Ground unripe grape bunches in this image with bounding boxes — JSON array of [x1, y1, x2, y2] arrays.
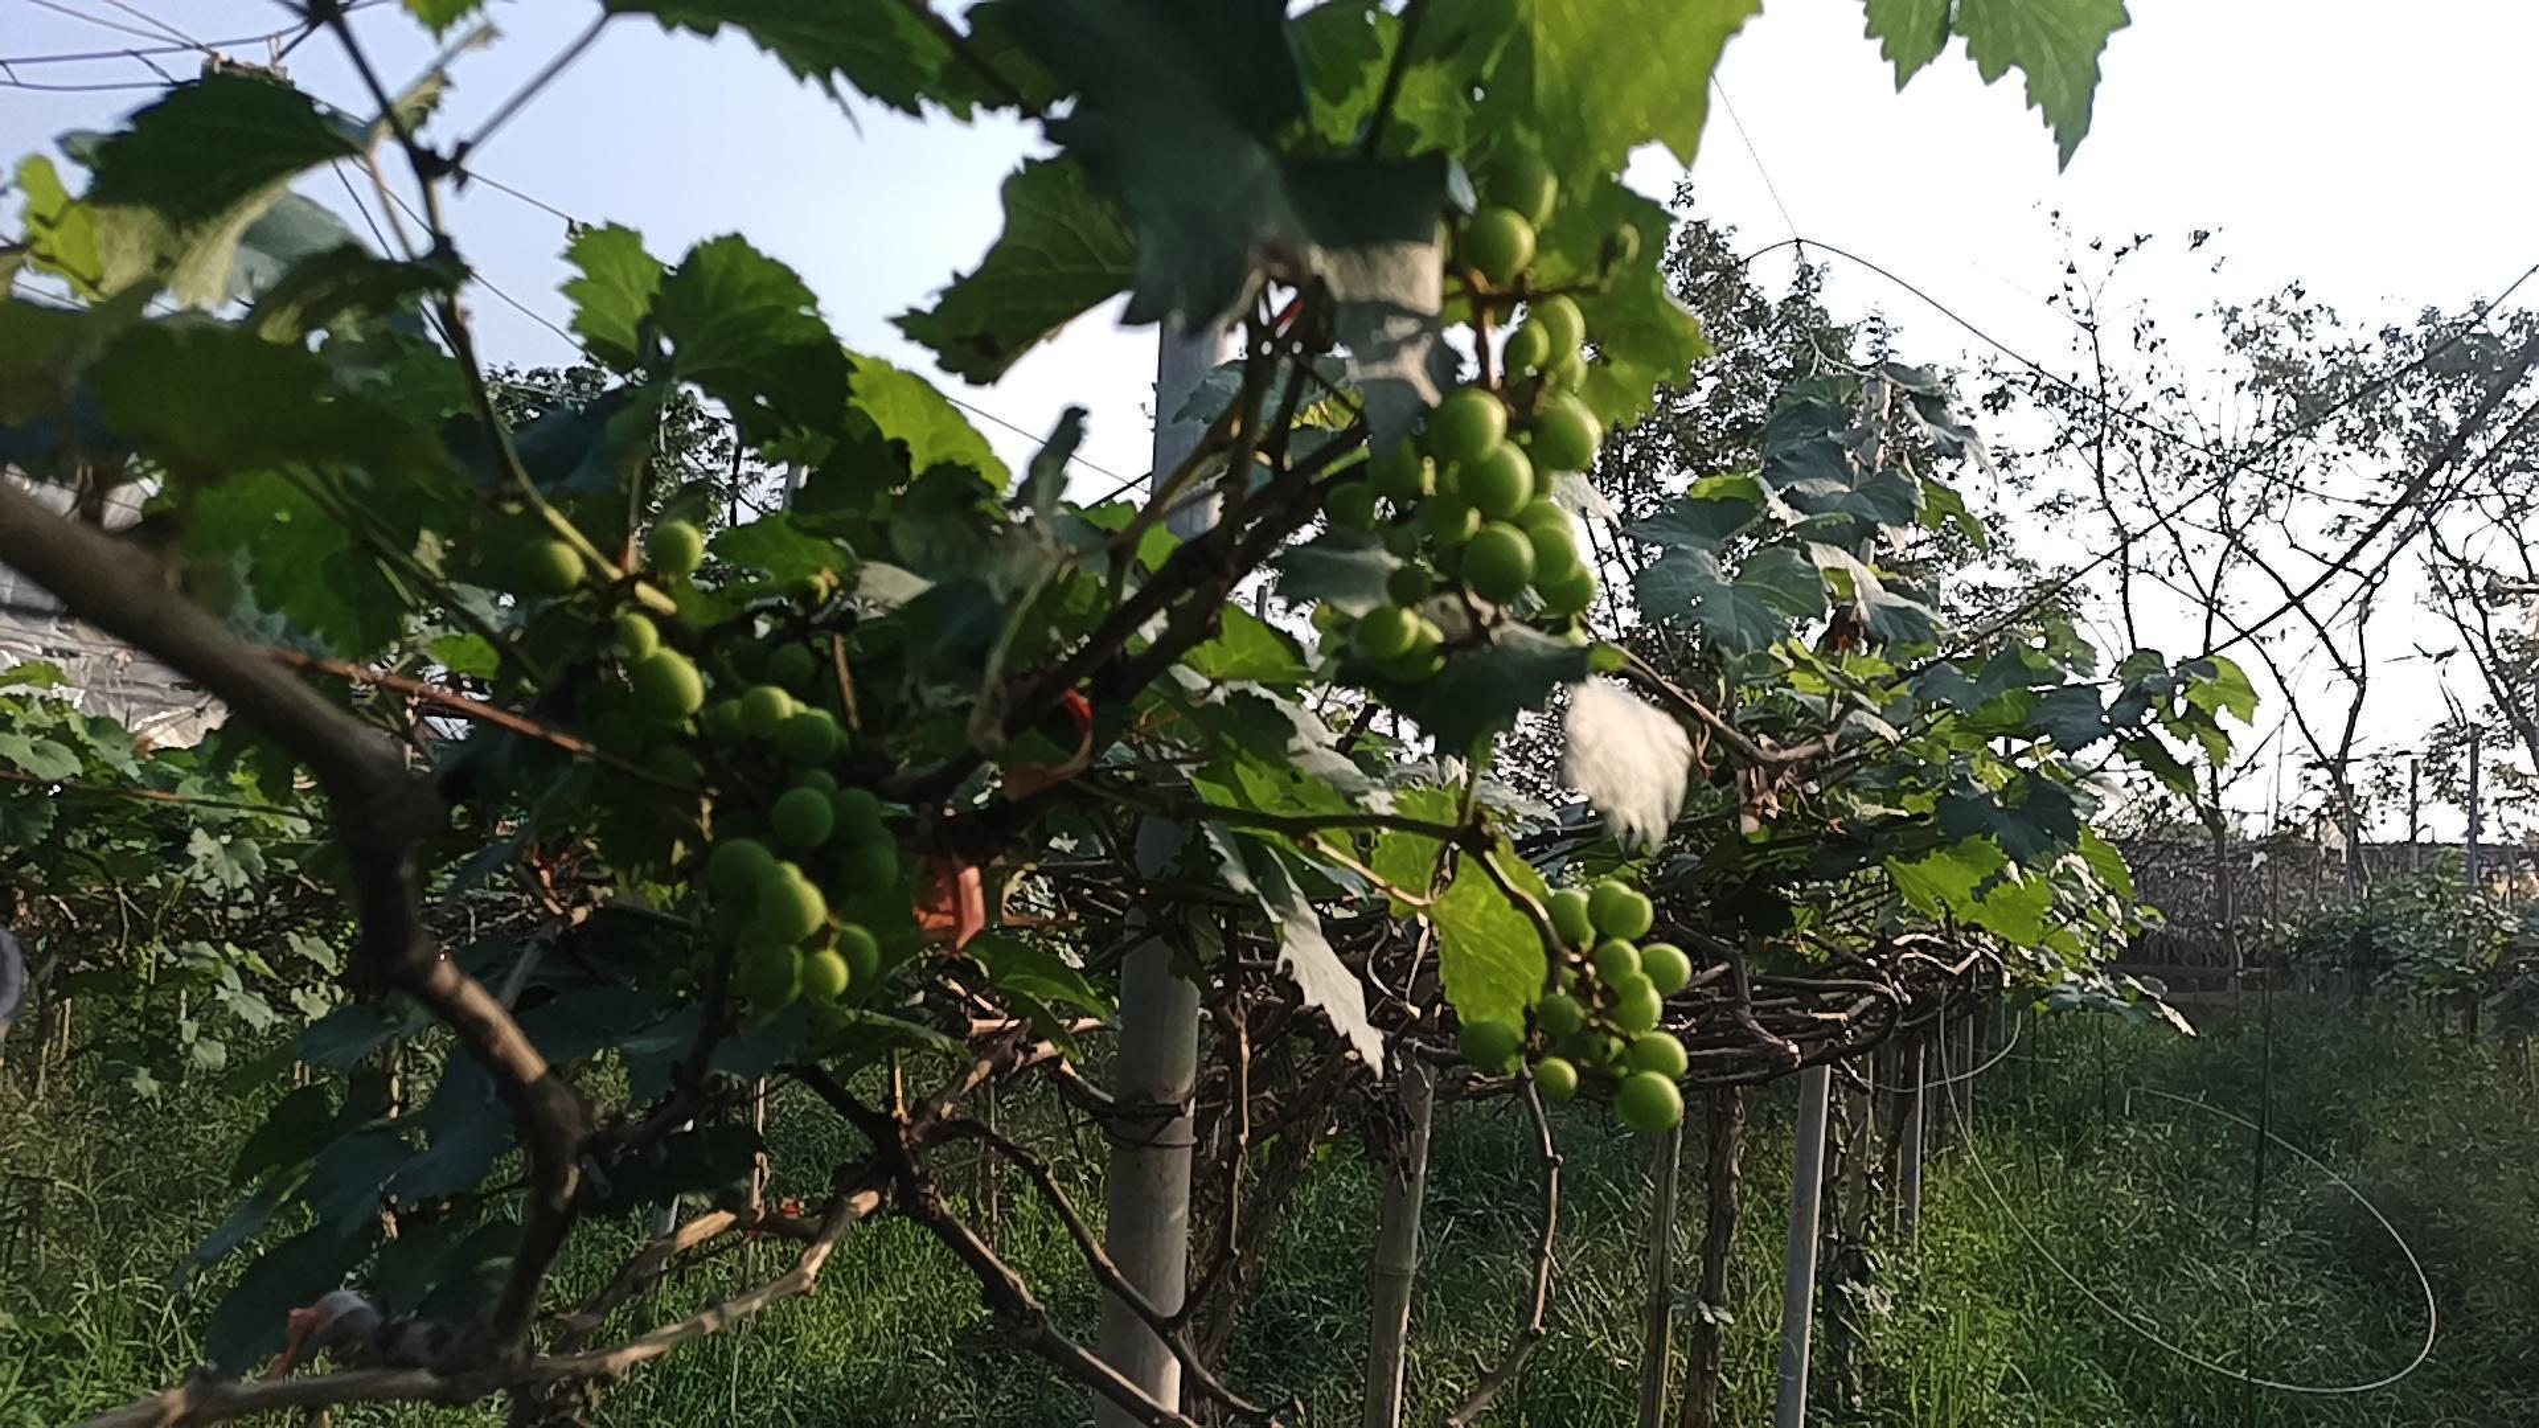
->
[[518, 517, 907, 1005], [1457, 879, 1690, 1132], [1322, 159, 1600, 680]]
